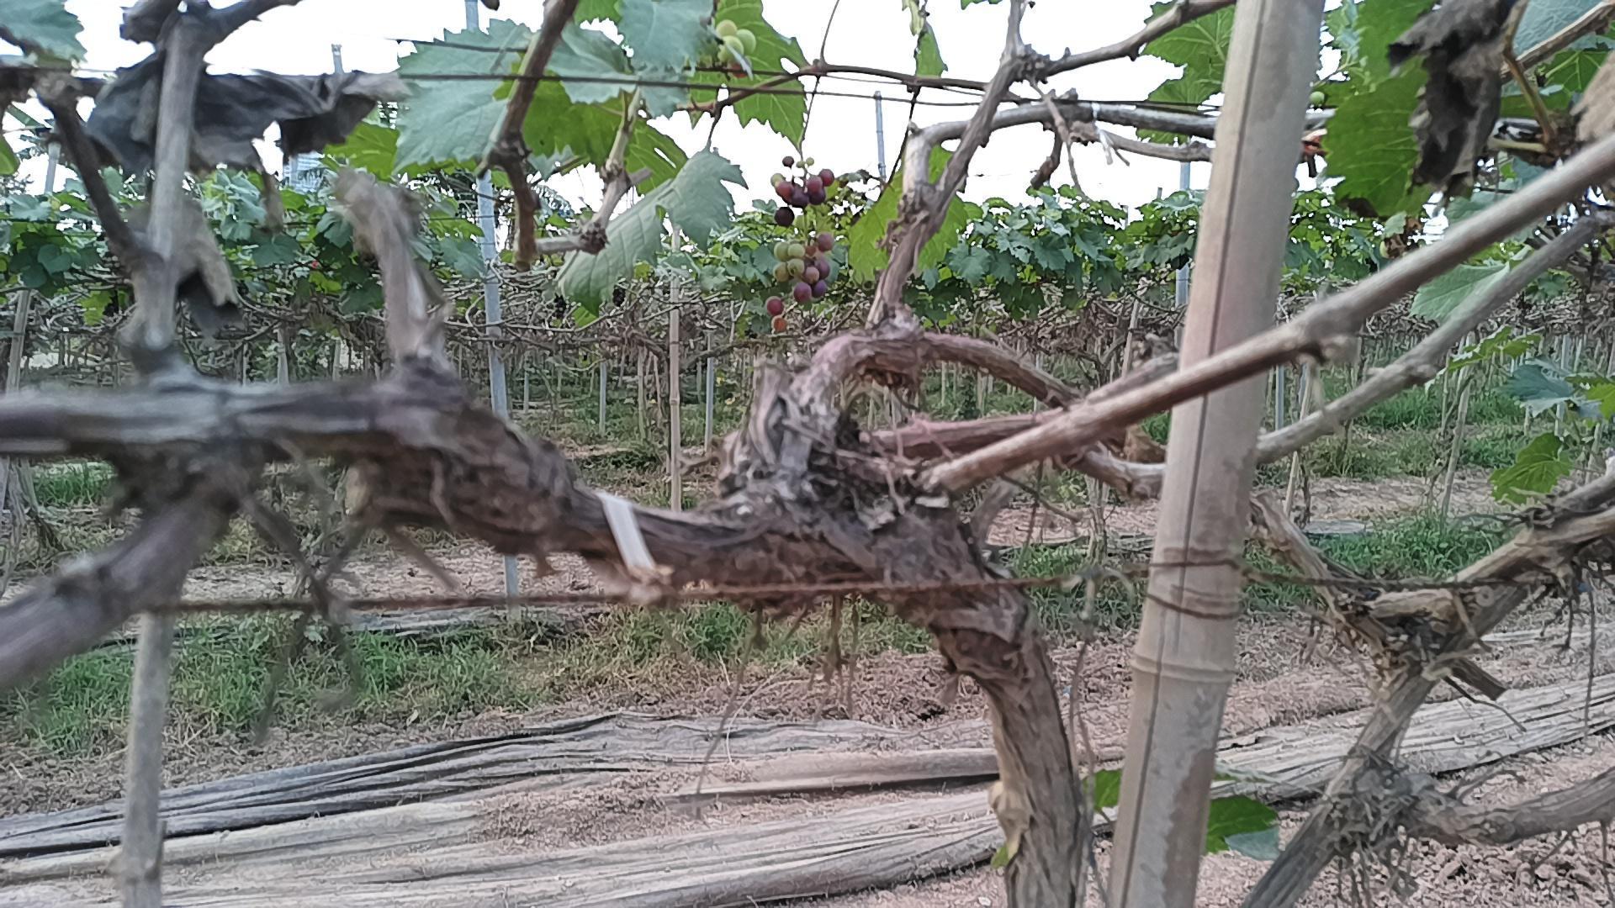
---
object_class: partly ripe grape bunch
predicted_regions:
[765,156,835,331]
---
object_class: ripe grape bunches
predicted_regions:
[612,288,627,308]
[553,293,568,319]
